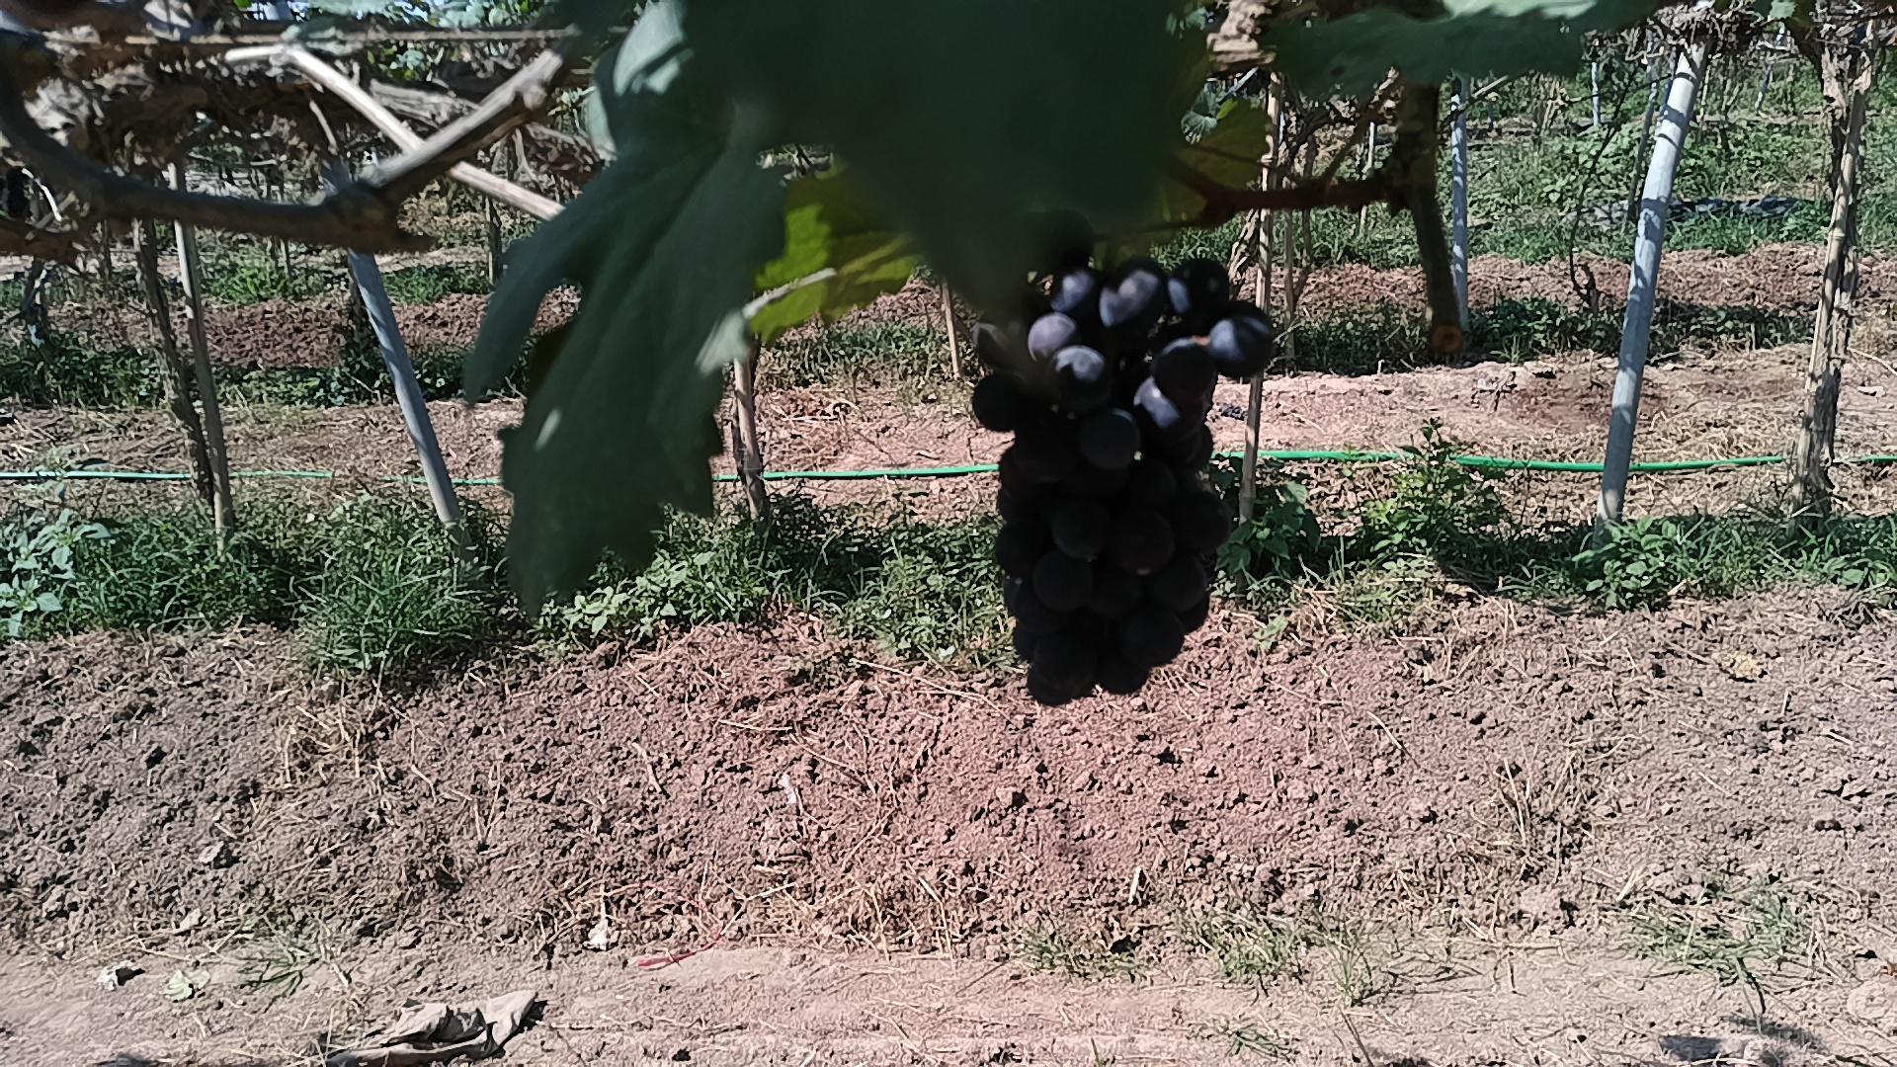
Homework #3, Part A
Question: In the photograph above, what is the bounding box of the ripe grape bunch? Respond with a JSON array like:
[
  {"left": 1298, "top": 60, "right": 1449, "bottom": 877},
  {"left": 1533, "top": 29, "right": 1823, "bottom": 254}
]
[{"left": 974, "top": 247, "right": 1276, "bottom": 705}]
